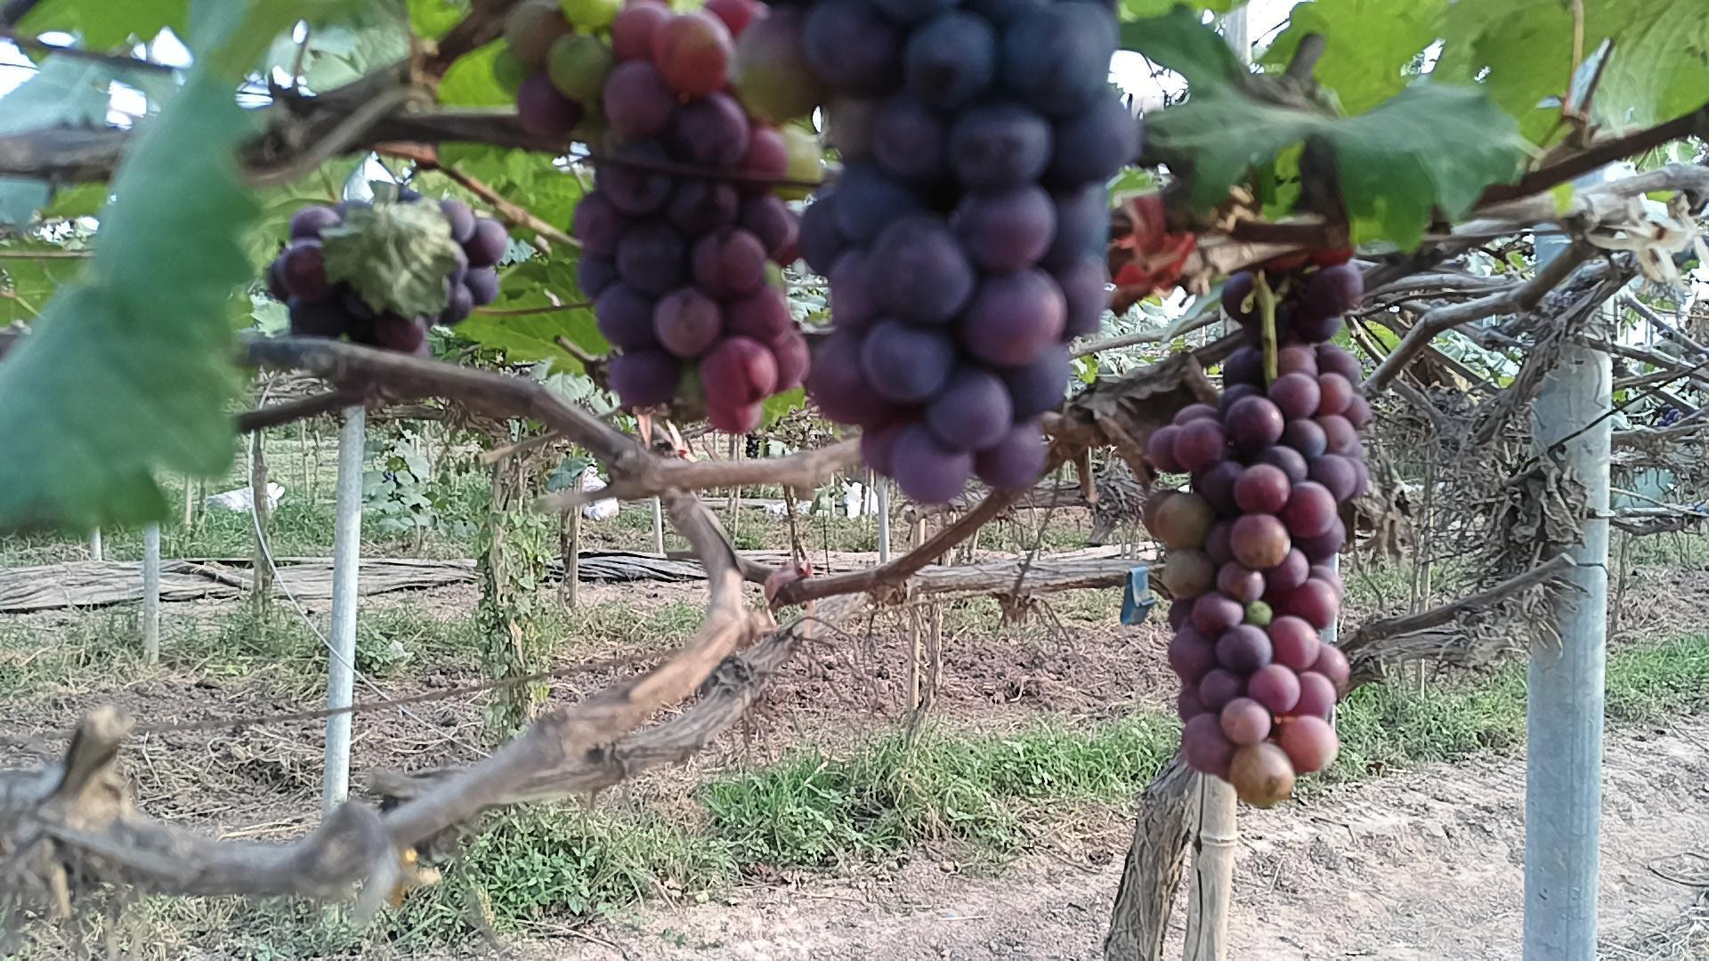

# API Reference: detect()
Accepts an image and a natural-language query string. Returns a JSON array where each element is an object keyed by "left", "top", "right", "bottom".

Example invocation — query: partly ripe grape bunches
[
  {"left": 1145, "top": 264, "right": 1370, "bottom": 806},
  {"left": 489, "top": 0, "right": 825, "bottom": 433}
]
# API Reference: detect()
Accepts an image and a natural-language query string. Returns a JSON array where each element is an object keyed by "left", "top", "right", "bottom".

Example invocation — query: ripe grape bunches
[
  {"left": 268, "top": 189, "right": 510, "bottom": 353},
  {"left": 732, "top": 0, "right": 1142, "bottom": 501}
]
